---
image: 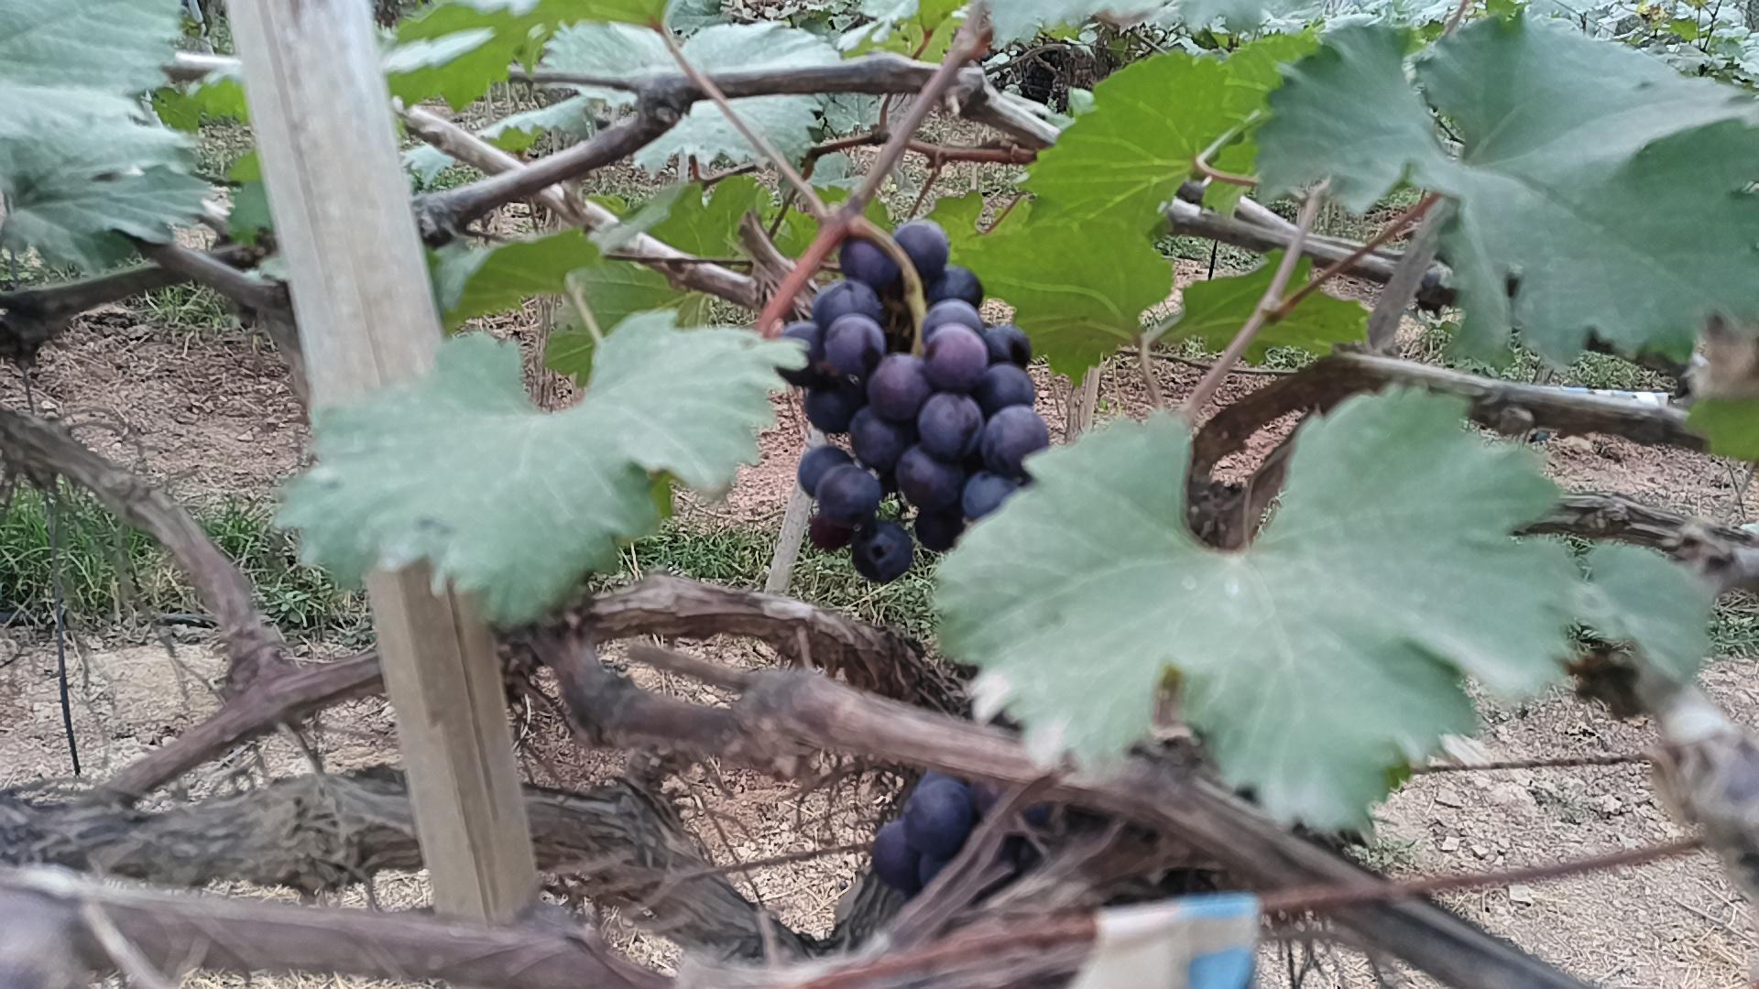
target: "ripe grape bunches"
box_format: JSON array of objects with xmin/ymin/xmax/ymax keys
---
[
  {"xmin": 783, "ymin": 219, "xmax": 1049, "ymax": 583},
  {"xmin": 871, "ymin": 771, "xmax": 994, "ymax": 900}
]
